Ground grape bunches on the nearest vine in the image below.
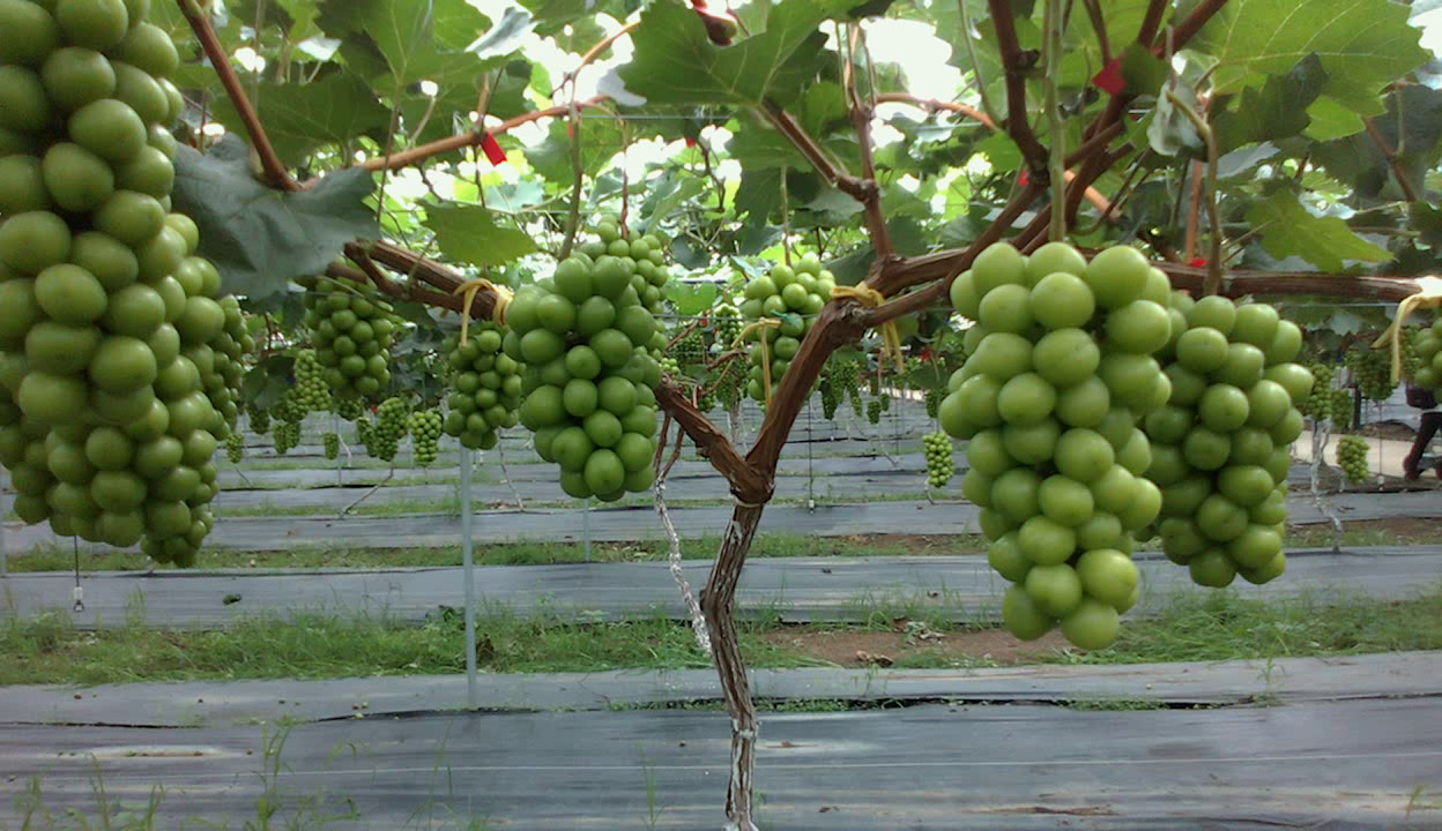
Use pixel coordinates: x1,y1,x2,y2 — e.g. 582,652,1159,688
938,242,1185,651
0,0,225,548
503,252,660,502
1133,293,1314,589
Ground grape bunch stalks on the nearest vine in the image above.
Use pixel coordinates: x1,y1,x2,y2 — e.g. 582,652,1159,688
557,107,580,265
1046,1,1065,244
1166,90,1222,298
